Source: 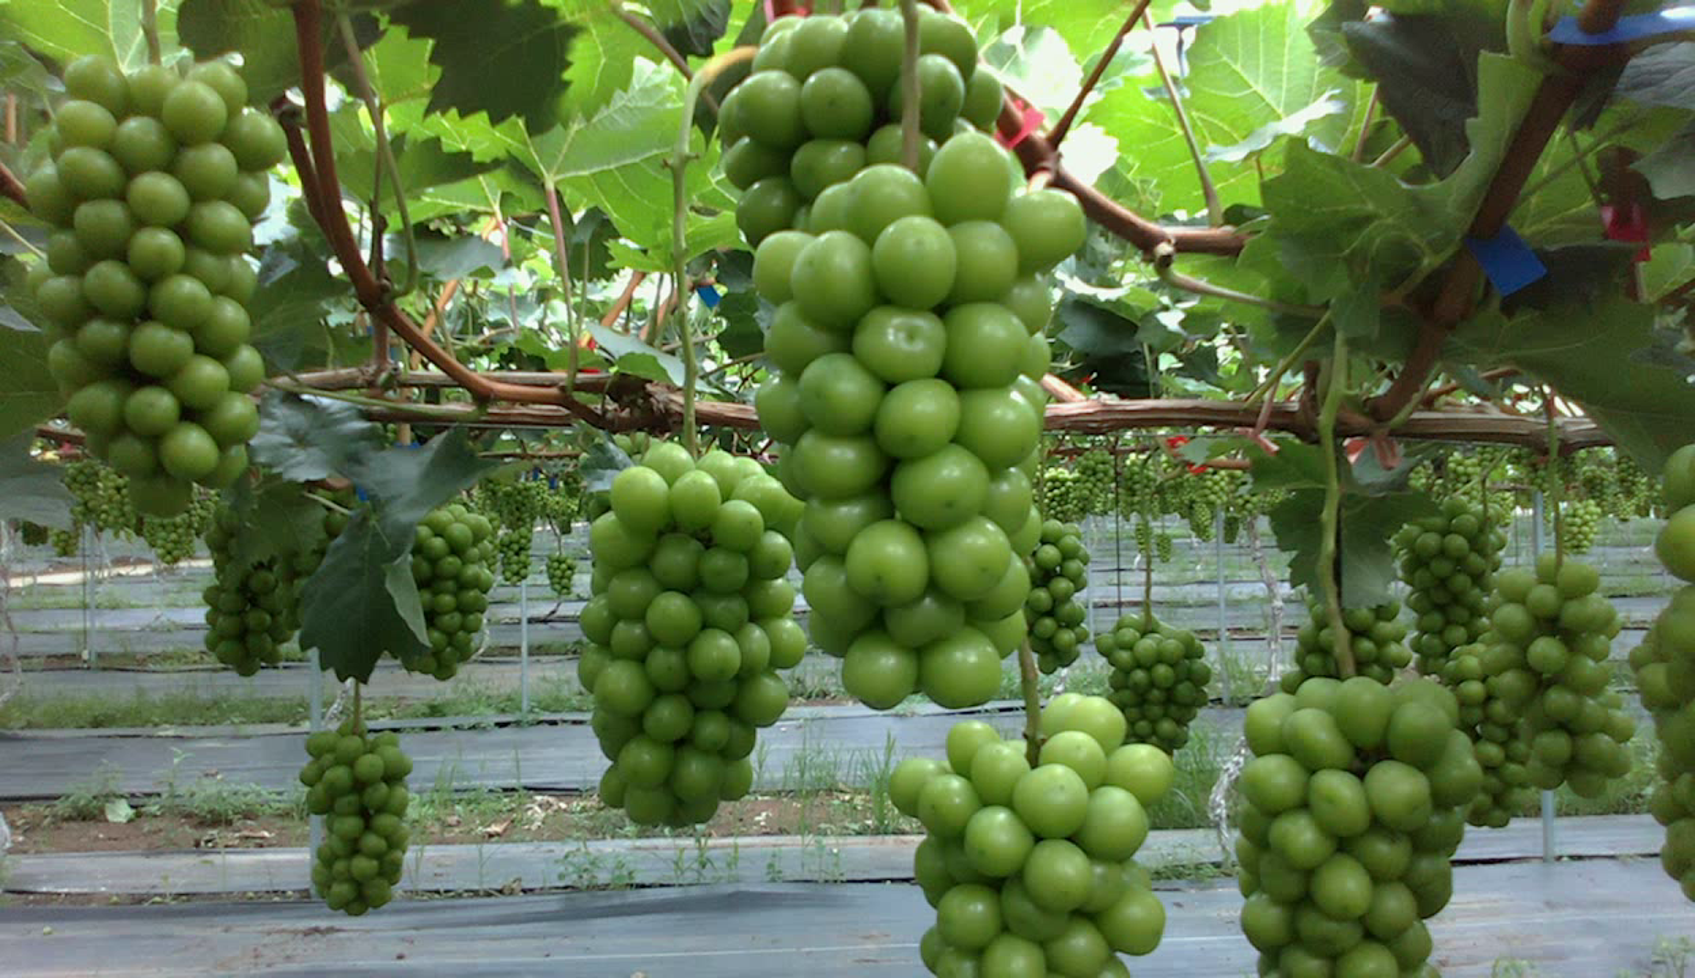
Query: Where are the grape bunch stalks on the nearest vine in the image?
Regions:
[671,46,759,459]
[1017,638,1042,769]
[143,0,160,67]
[898,0,921,177]
[1320,341,1355,682]
[1543,399,1565,581]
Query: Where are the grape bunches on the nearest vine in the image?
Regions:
[716,0,1004,251]
[1478,550,1635,799]
[886,694,1175,977]
[1627,443,1691,901]
[752,129,1088,710]
[1233,675,1484,977]
[24,53,287,518]
[579,443,808,829]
